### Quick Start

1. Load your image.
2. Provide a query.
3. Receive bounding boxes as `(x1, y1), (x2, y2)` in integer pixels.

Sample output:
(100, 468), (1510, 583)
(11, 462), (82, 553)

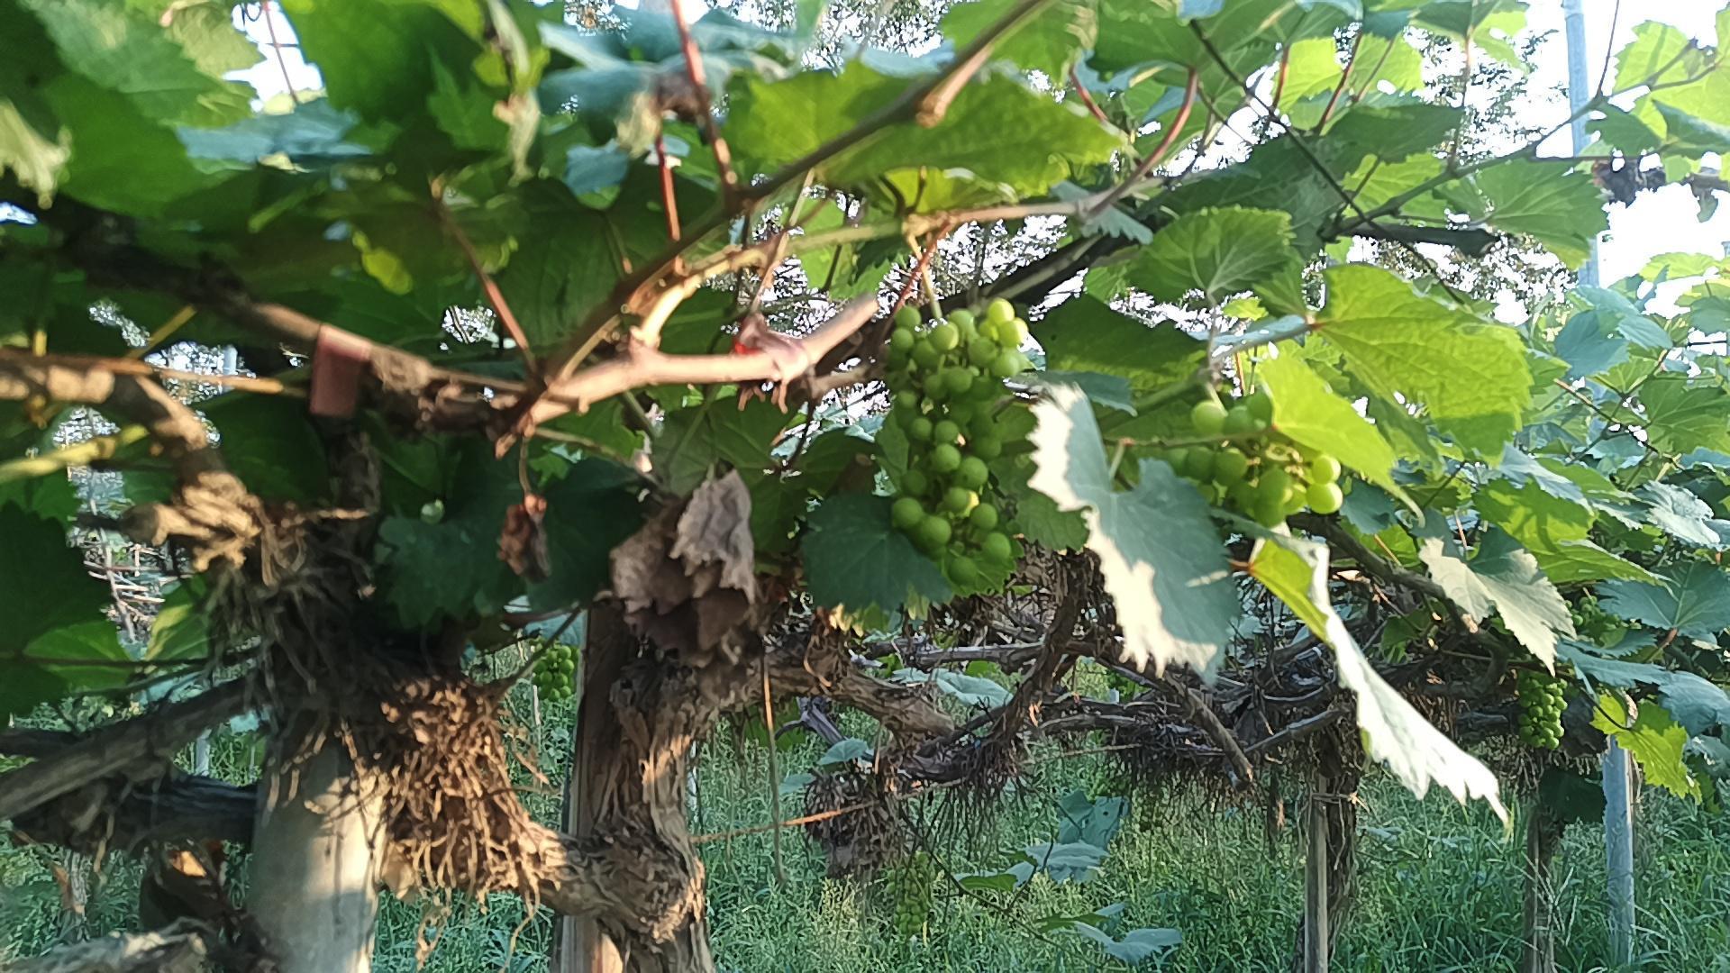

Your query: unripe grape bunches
(1516, 660), (1571, 749)
(1167, 392), (1342, 525)
(1564, 595), (1643, 631)
(884, 302), (1030, 585)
